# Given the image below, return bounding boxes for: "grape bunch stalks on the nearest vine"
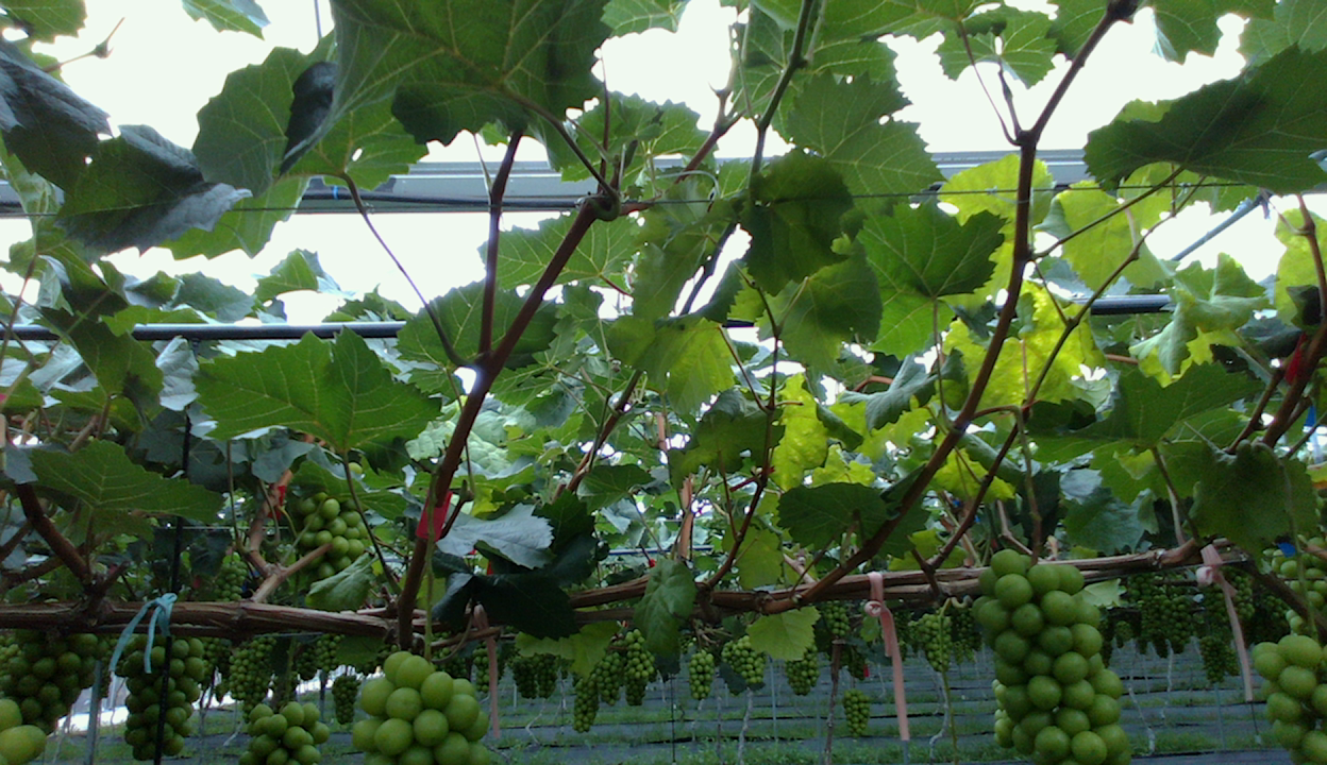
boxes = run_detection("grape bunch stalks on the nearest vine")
[1258,442,1320,643]
[972,405,1041,571]
[423,463,440,663]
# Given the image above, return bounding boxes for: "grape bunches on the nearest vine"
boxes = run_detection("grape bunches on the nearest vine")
[1252,634,1326,764]
[971,550,1131,764]
[352,651,492,764]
